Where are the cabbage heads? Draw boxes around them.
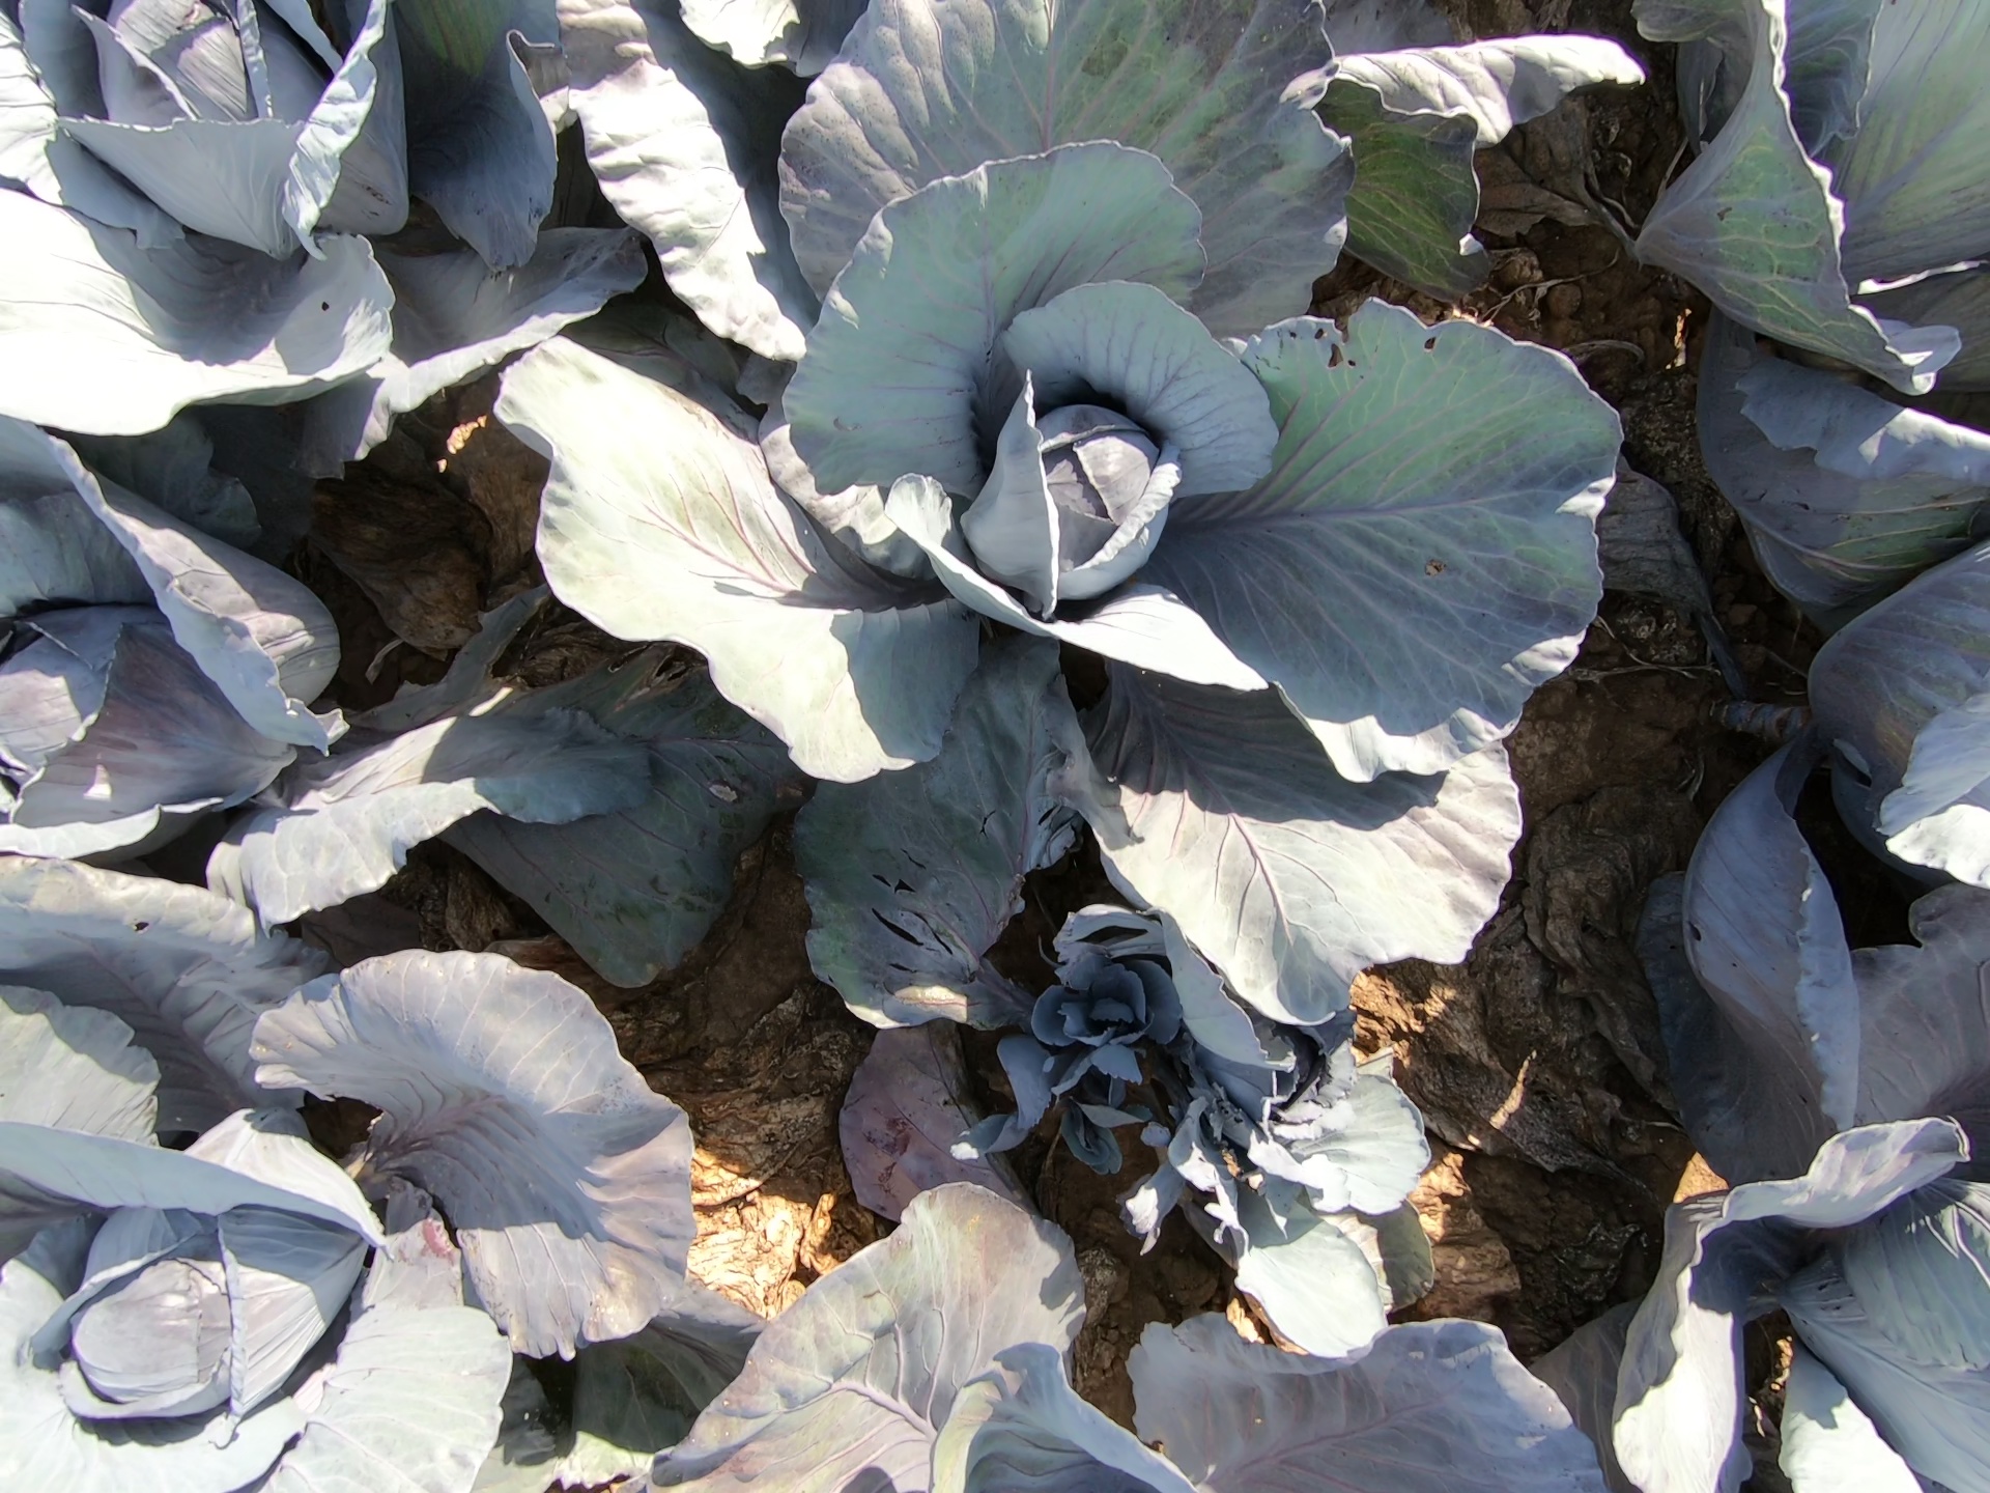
[99,2,341,216]
[1001,401,1174,596]
[64,1149,361,1405]
[2,604,271,810]
[1200,1020,1311,1122]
